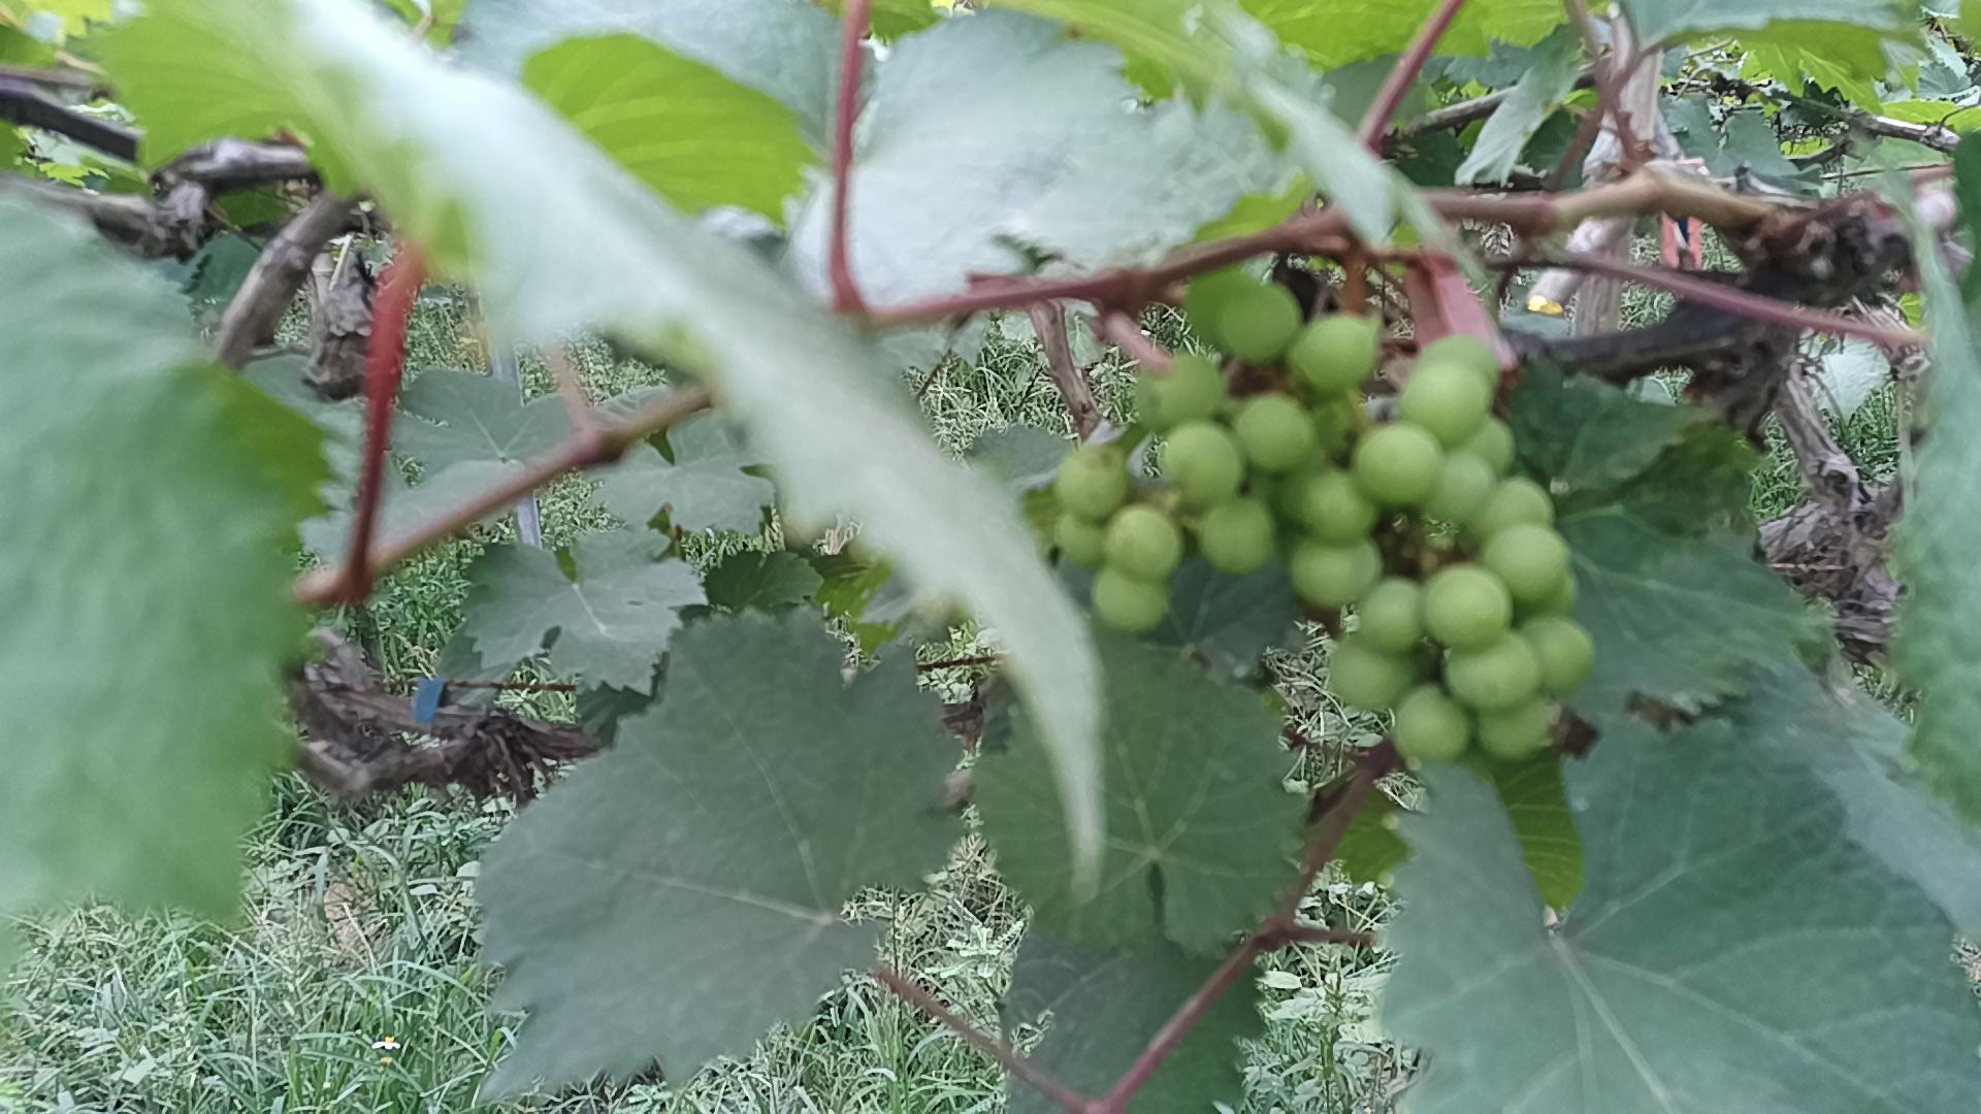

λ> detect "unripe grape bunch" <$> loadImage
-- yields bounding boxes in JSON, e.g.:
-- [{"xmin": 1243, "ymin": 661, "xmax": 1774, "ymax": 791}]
[{"xmin": 1052, "ymin": 269, "xmax": 1593, "ymax": 760}]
